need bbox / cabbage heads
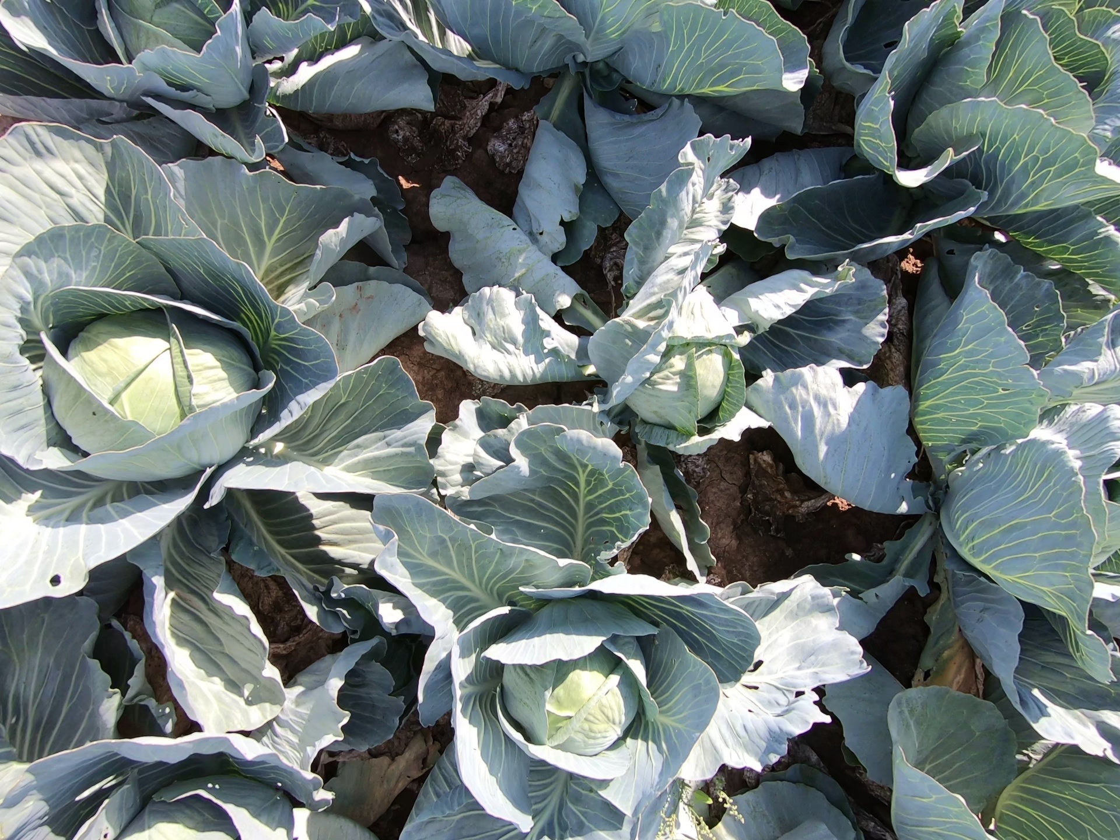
[58,297,263,467]
[502,606,647,759]
[114,778,293,838]
[104,0,237,92]
[613,297,740,425]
